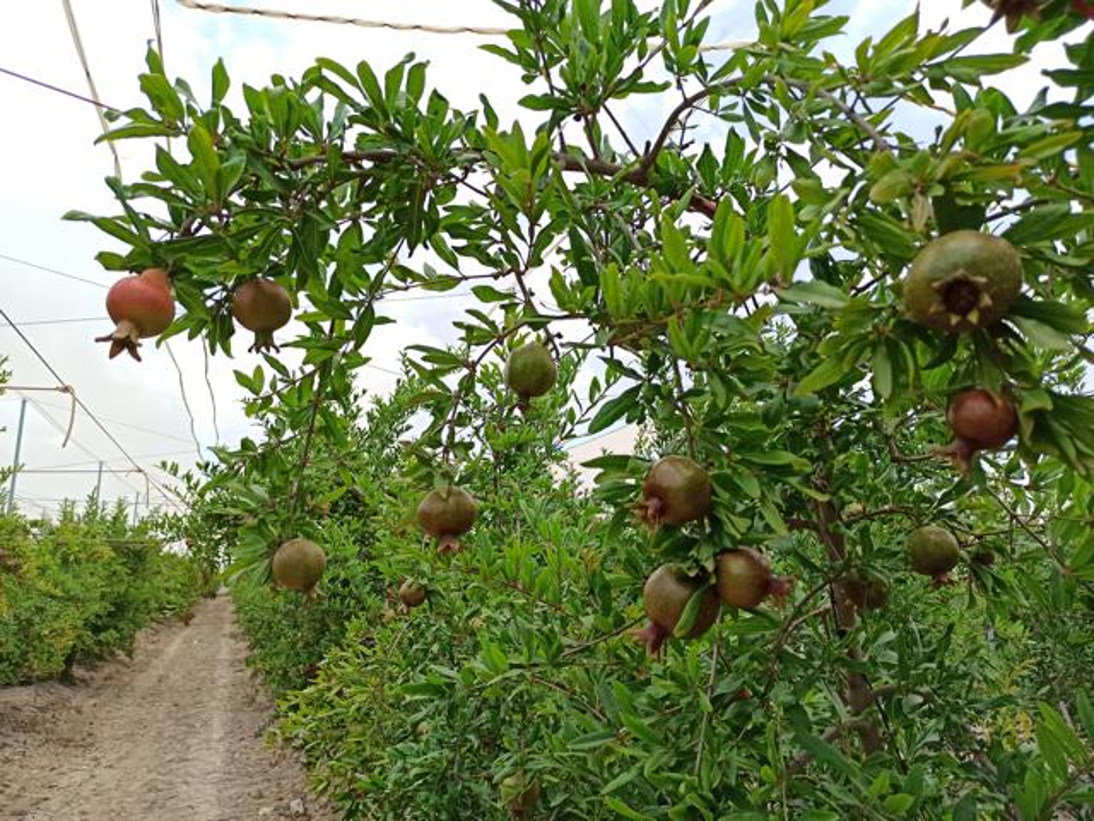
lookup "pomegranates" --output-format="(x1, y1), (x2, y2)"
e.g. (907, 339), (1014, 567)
(503, 342), (557, 414)
(624, 563), (721, 659)
(94, 267), (176, 363)
(501, 773), (540, 818)
(626, 453), (711, 532)
(270, 537), (328, 604)
(229, 277), (292, 356)
(909, 525), (959, 588)
(417, 486), (477, 554)
(397, 582), (426, 616)
(713, 547), (793, 609)
(928, 387), (1017, 475)
(906, 229), (1022, 334)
